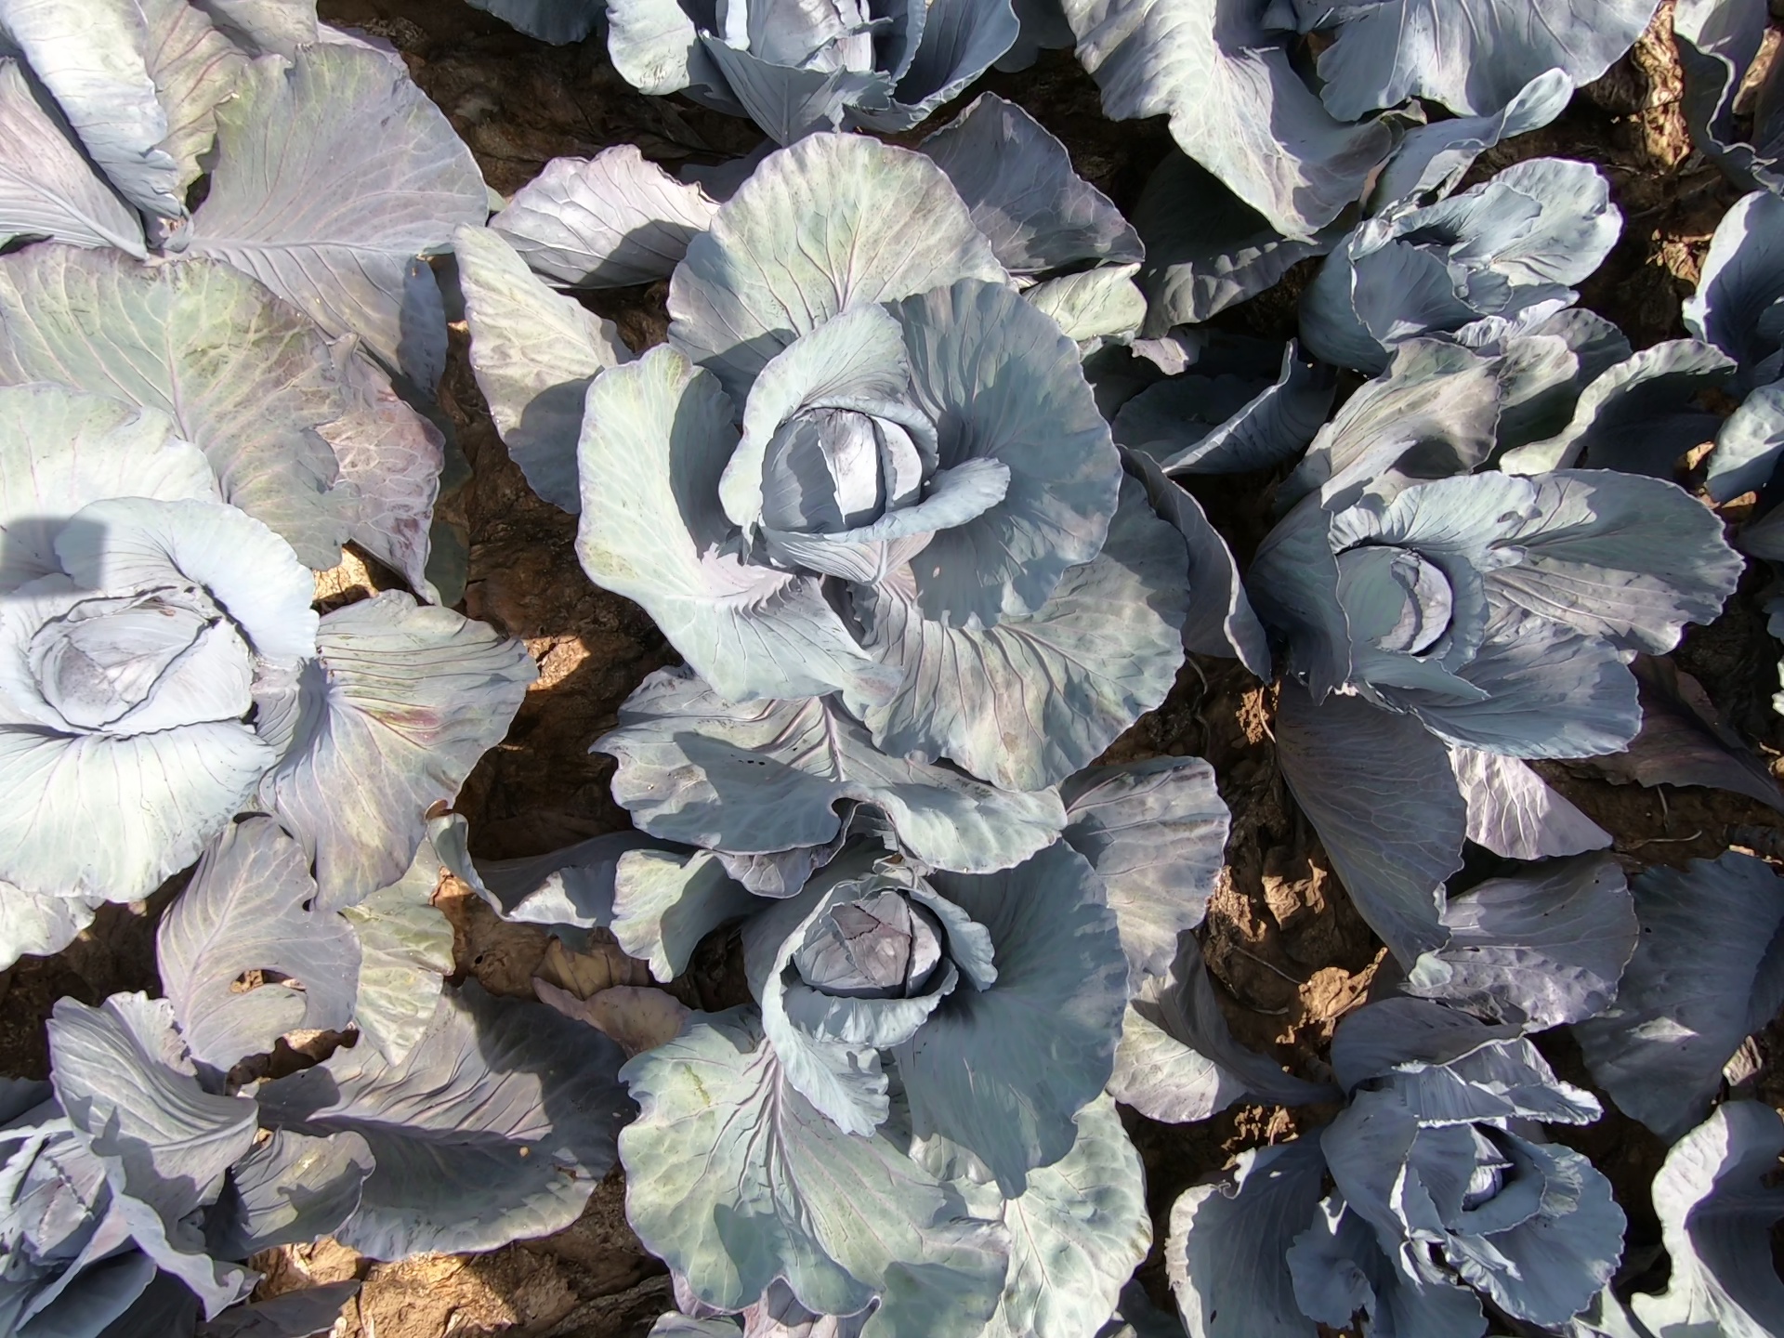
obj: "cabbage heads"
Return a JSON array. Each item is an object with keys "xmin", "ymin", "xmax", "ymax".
[
  {"xmin": 1399, "ymin": 1116, "xmax": 1505, "ymax": 1210},
  {"xmin": 37, "ymin": 595, "xmax": 231, "ymax": 731},
  {"xmin": 3, "ymin": 1100, "xmax": 190, "ymax": 1273},
  {"xmin": 753, "ymin": 397, "xmax": 923, "ymax": 547},
  {"xmin": 1318, "ymin": 545, "xmax": 1453, "ymax": 662},
  {"xmin": 791, "ymin": 887, "xmax": 945, "ymax": 1015},
  {"xmin": 733, "ymin": 6, "xmax": 884, "ymax": 111}
]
